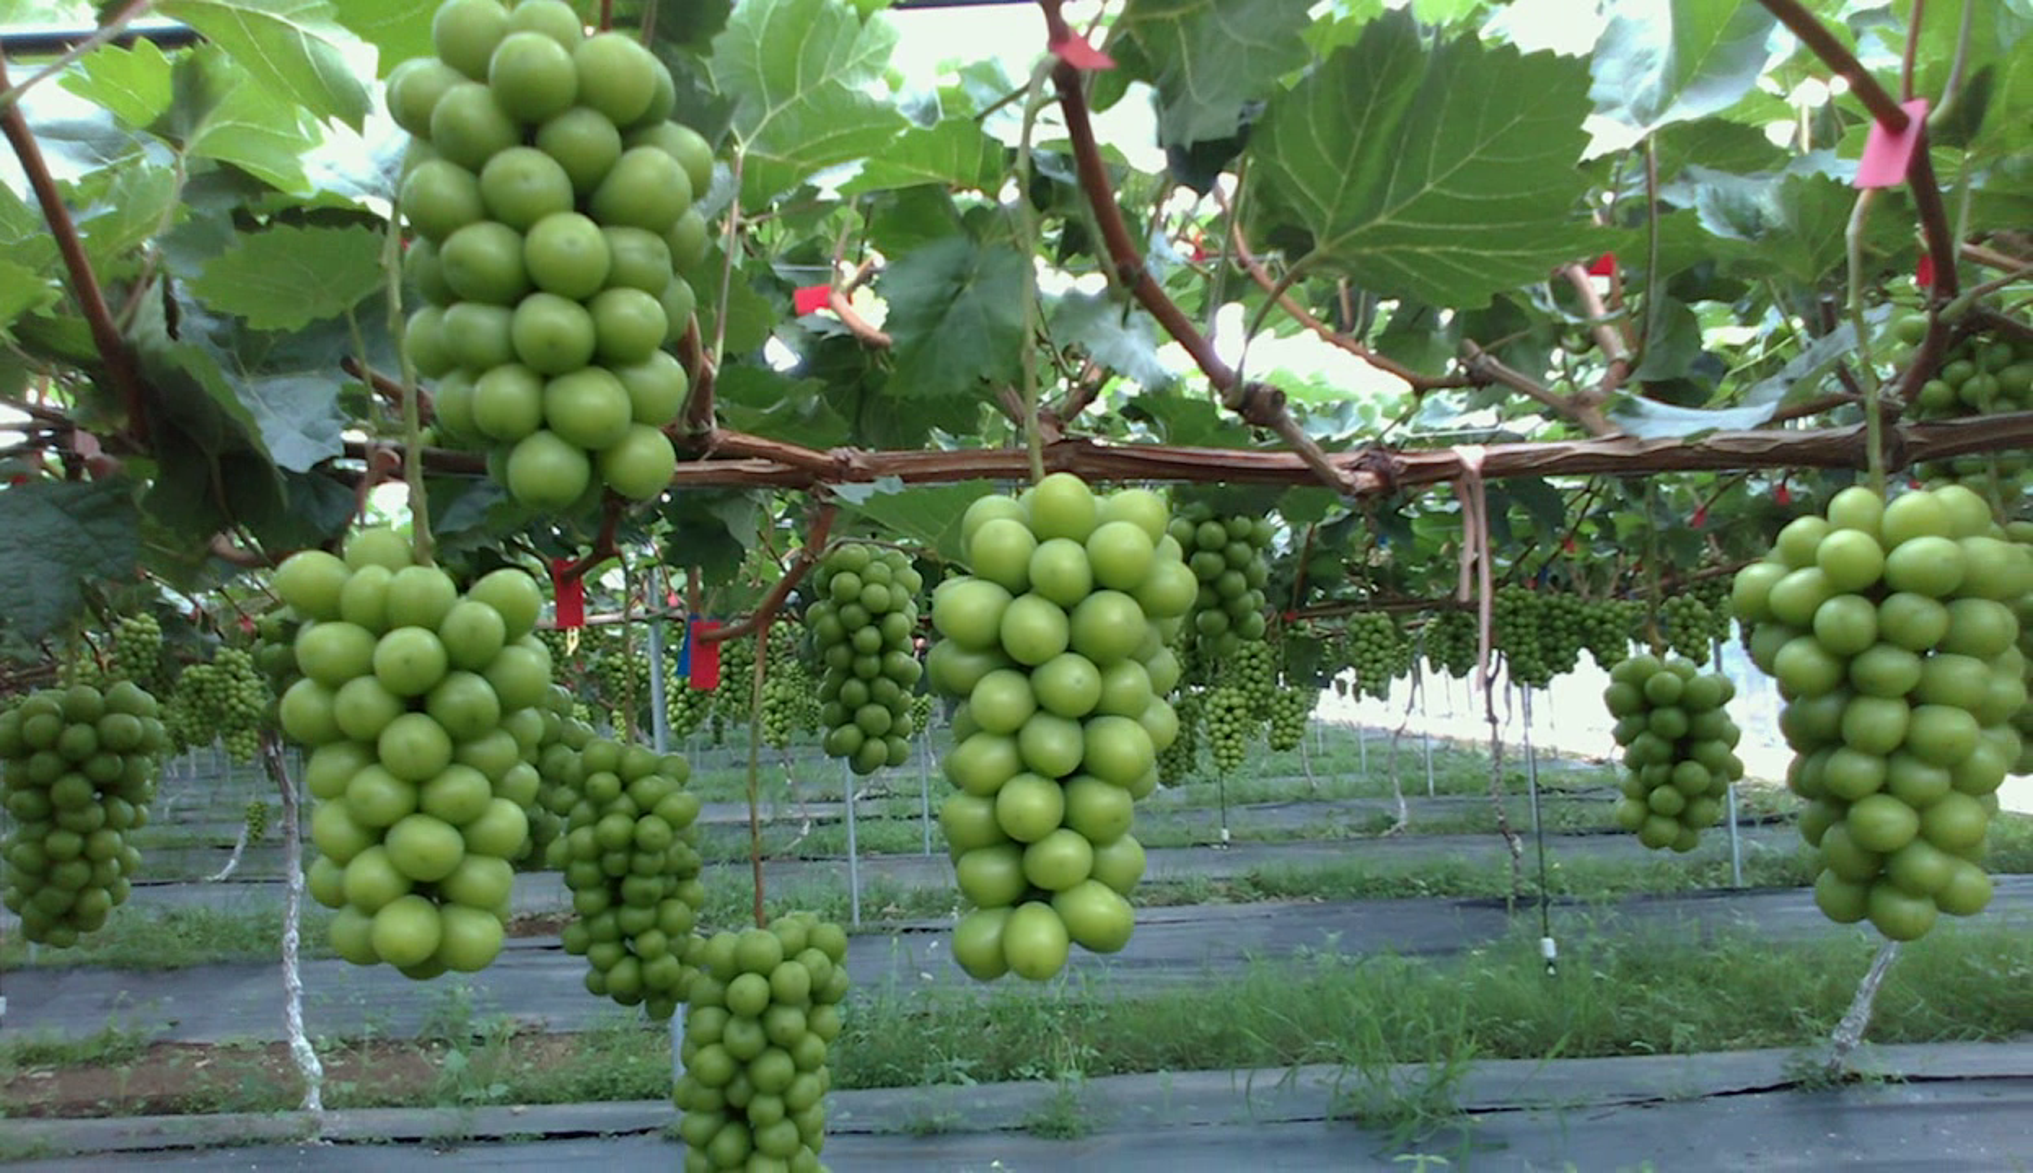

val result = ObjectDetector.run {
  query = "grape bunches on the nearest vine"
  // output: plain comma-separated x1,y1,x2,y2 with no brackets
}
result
924,472,1201,984
1732,484,2031,943
272,528,552,981
386,0,714,520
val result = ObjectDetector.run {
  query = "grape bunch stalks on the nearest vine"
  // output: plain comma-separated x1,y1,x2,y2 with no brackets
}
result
1841,187,1888,503
1015,52,1060,482
381,192,440,569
